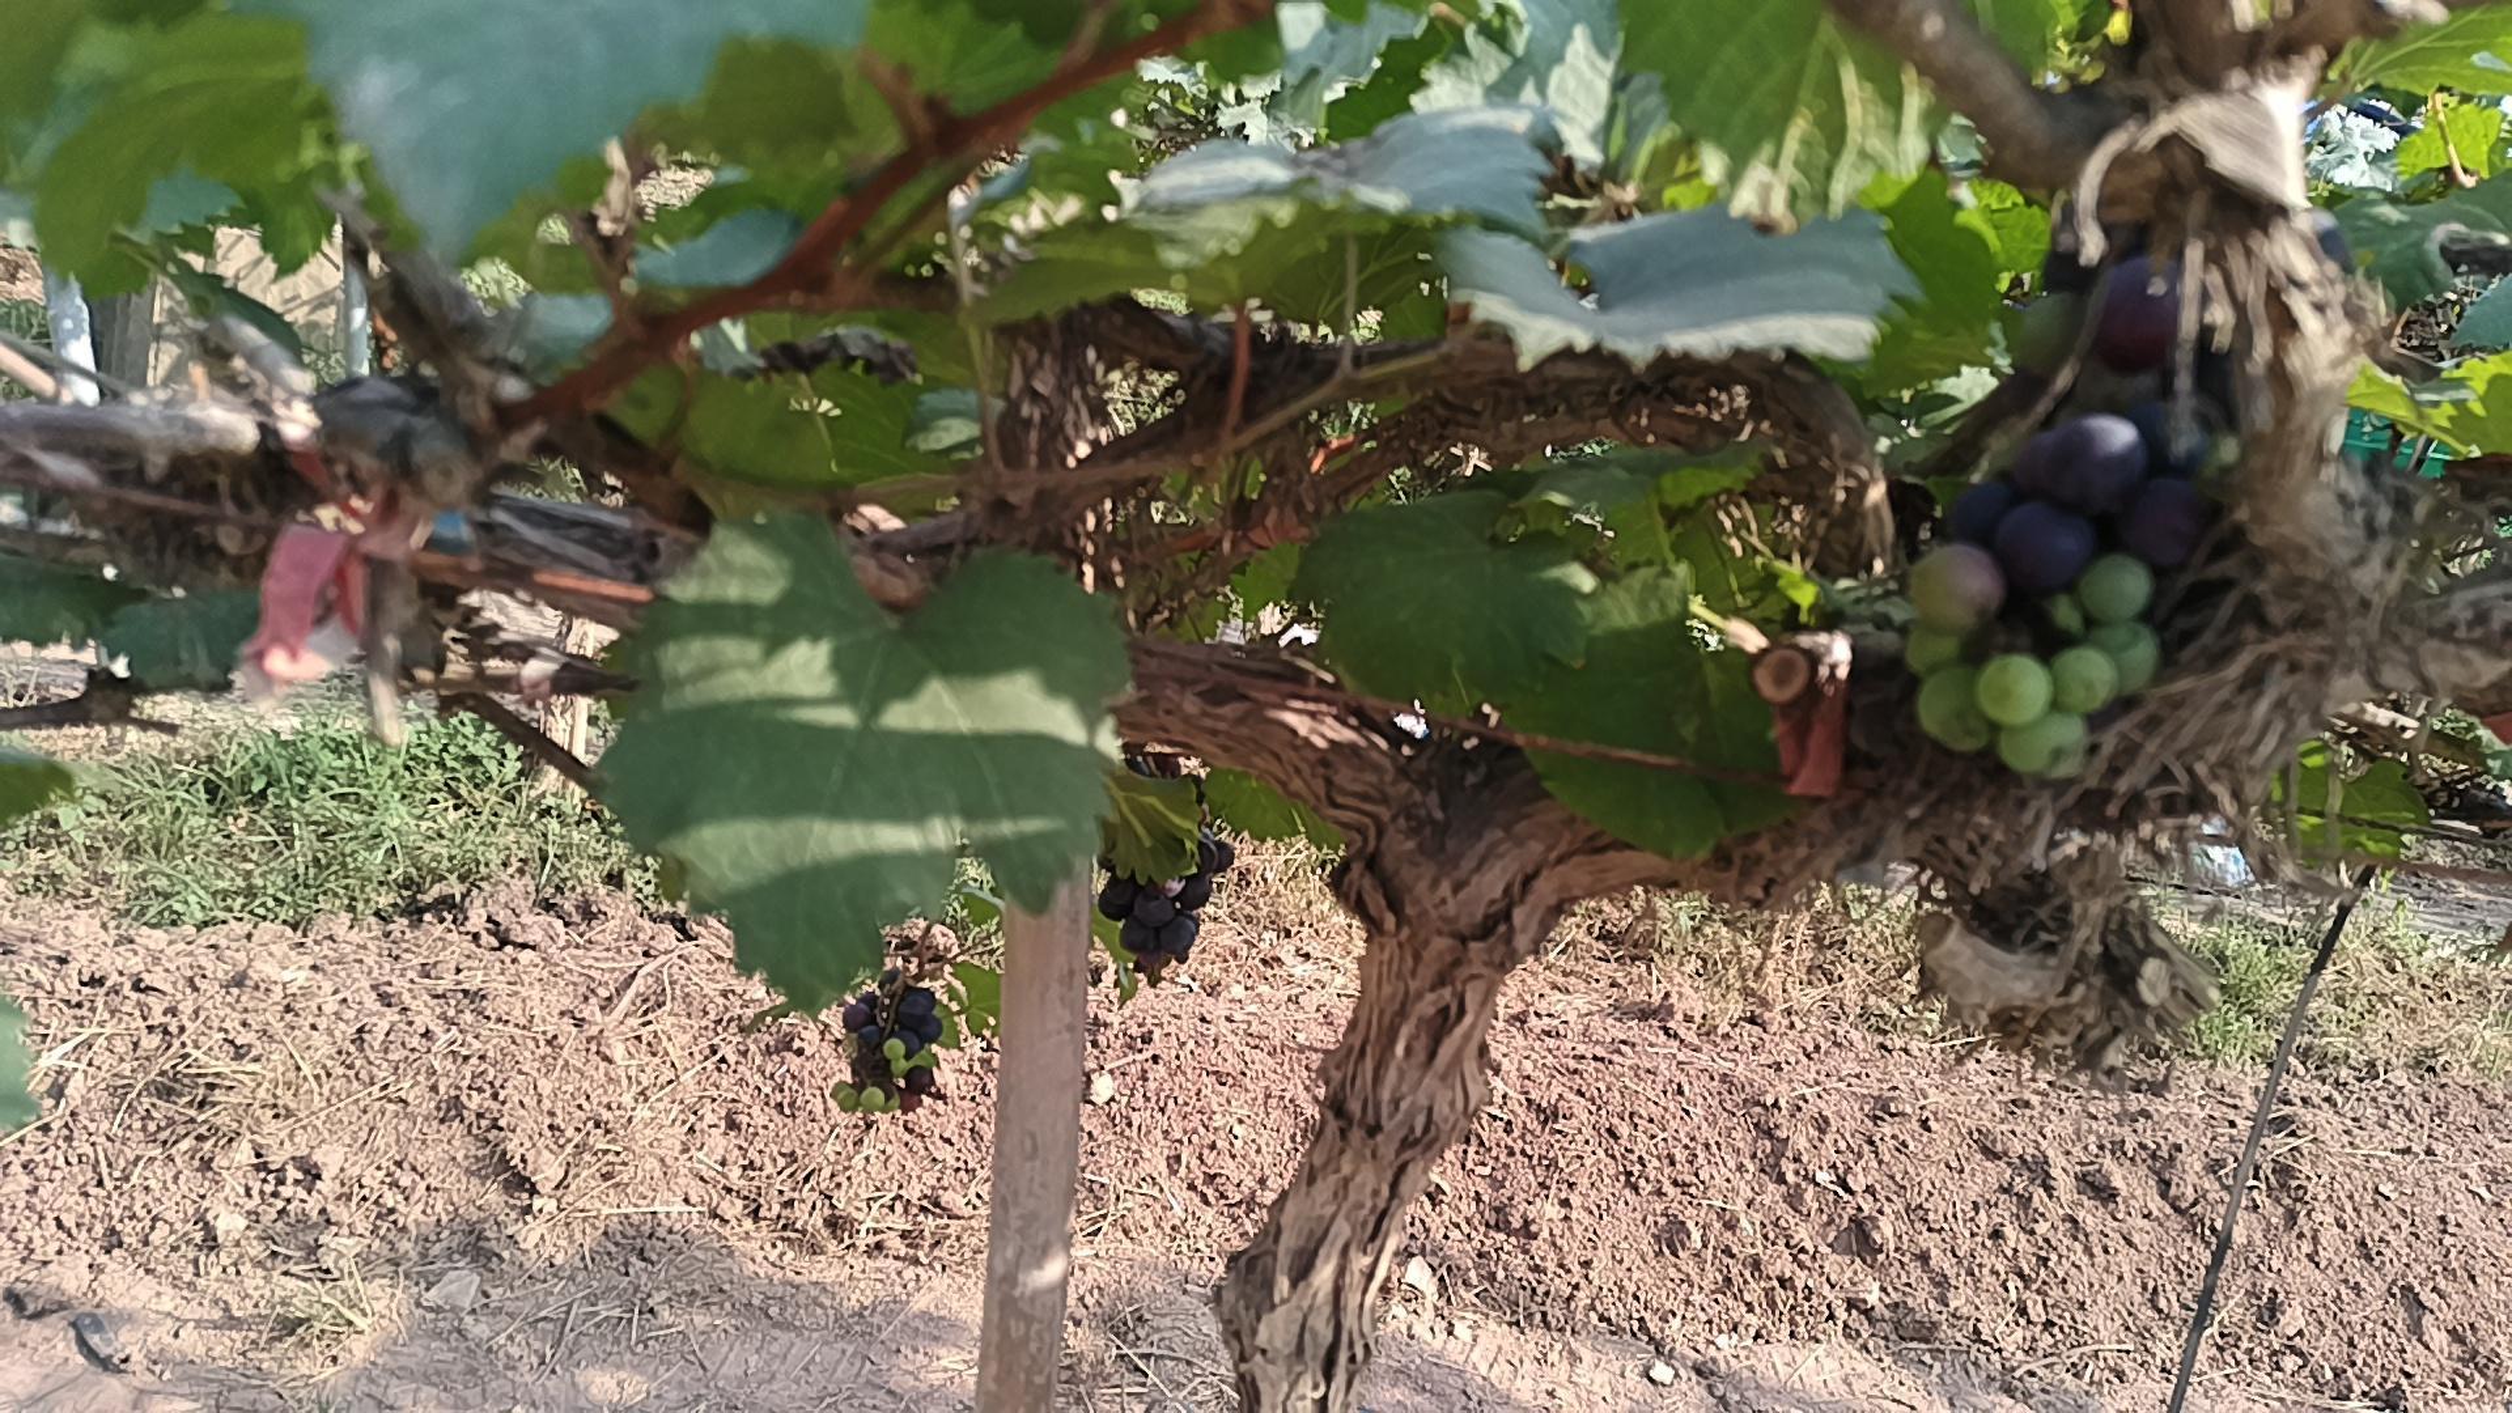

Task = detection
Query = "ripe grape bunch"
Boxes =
[1096,836,1234,976]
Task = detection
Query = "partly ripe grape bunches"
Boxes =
[1906,233,2242,777]
[833,967,946,1112]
